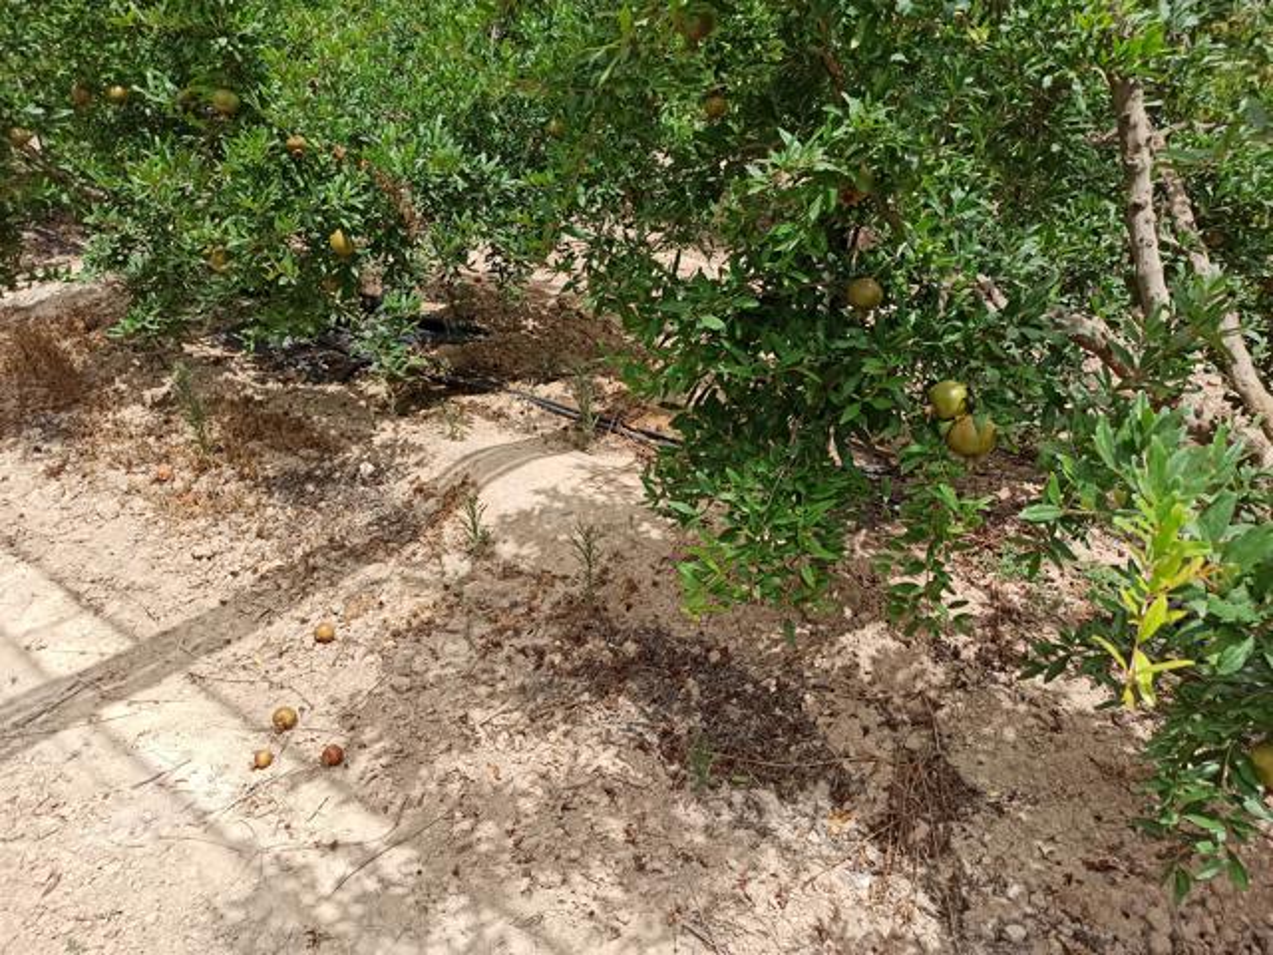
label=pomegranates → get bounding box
[284,133,306,159]
[207,253,225,271]
[837,187,869,209]
[211,90,241,121]
[1247,738,1273,798]
[945,412,997,474]
[676,14,714,50]
[847,277,885,320]
[328,229,354,259]
[919,380,971,426]
[103,84,129,103]
[706,95,728,119]
[72,88,91,105]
